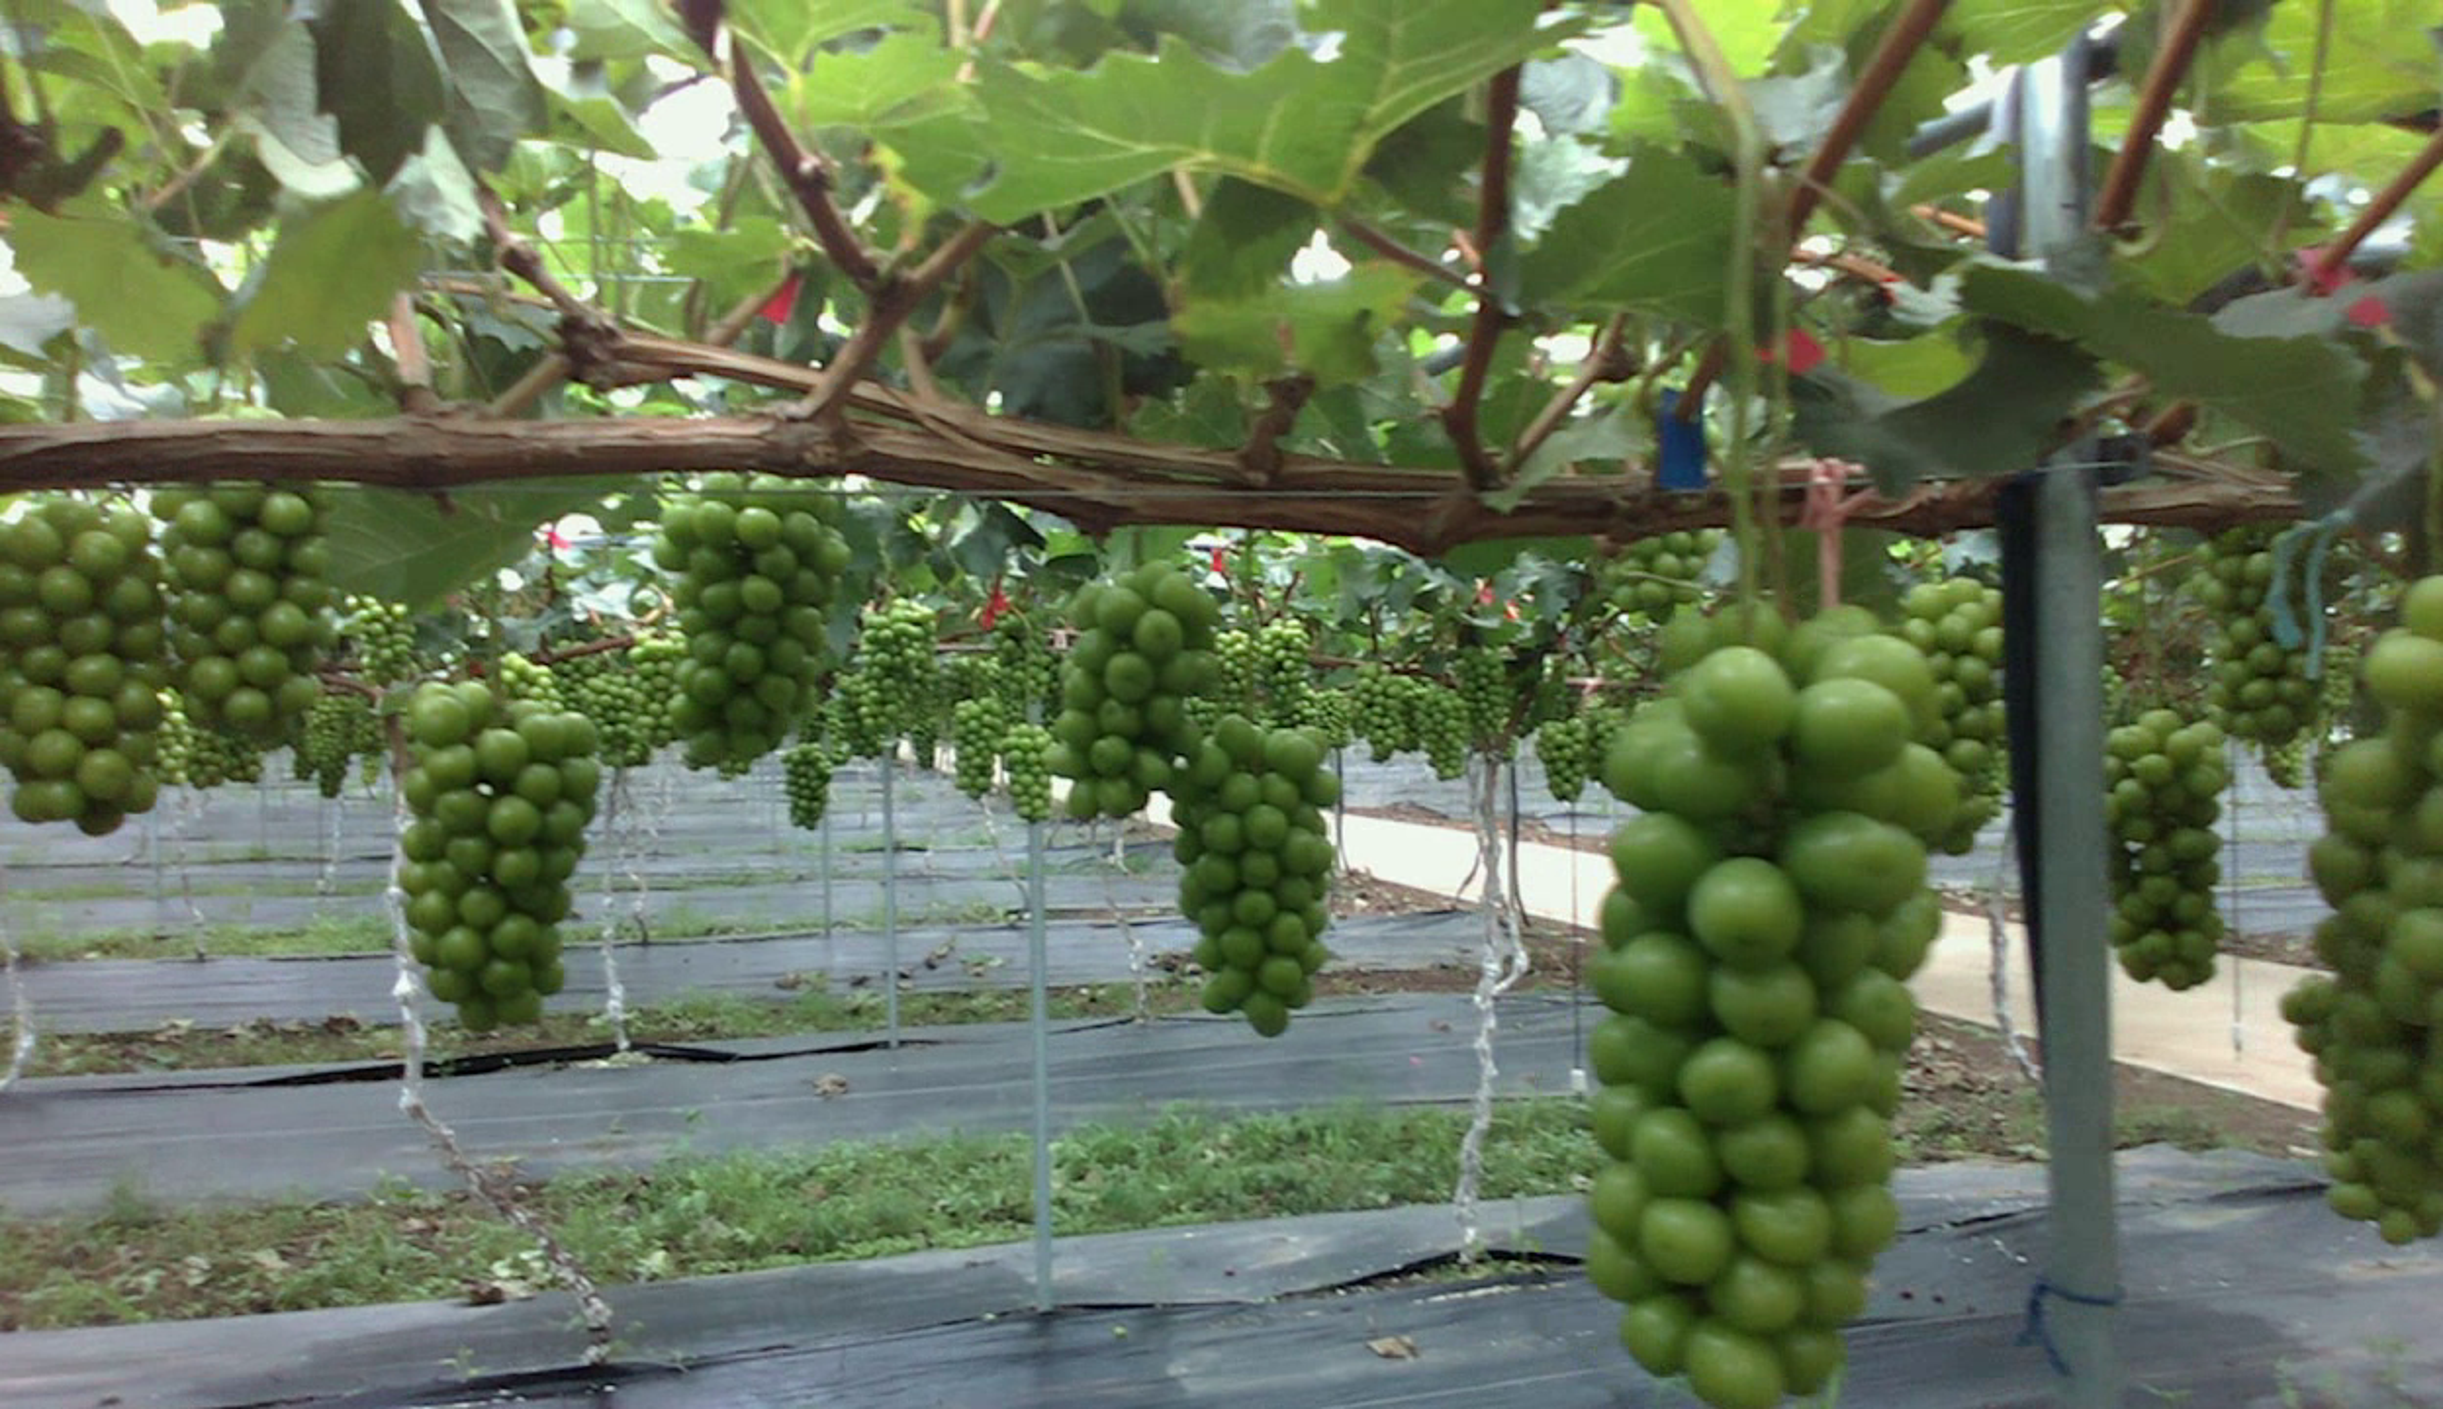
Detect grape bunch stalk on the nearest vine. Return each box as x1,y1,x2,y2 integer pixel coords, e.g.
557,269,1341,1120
1652,0,1762,640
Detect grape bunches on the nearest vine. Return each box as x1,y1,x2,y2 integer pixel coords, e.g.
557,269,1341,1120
2328,573,2441,1029
1584,603,1961,1407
